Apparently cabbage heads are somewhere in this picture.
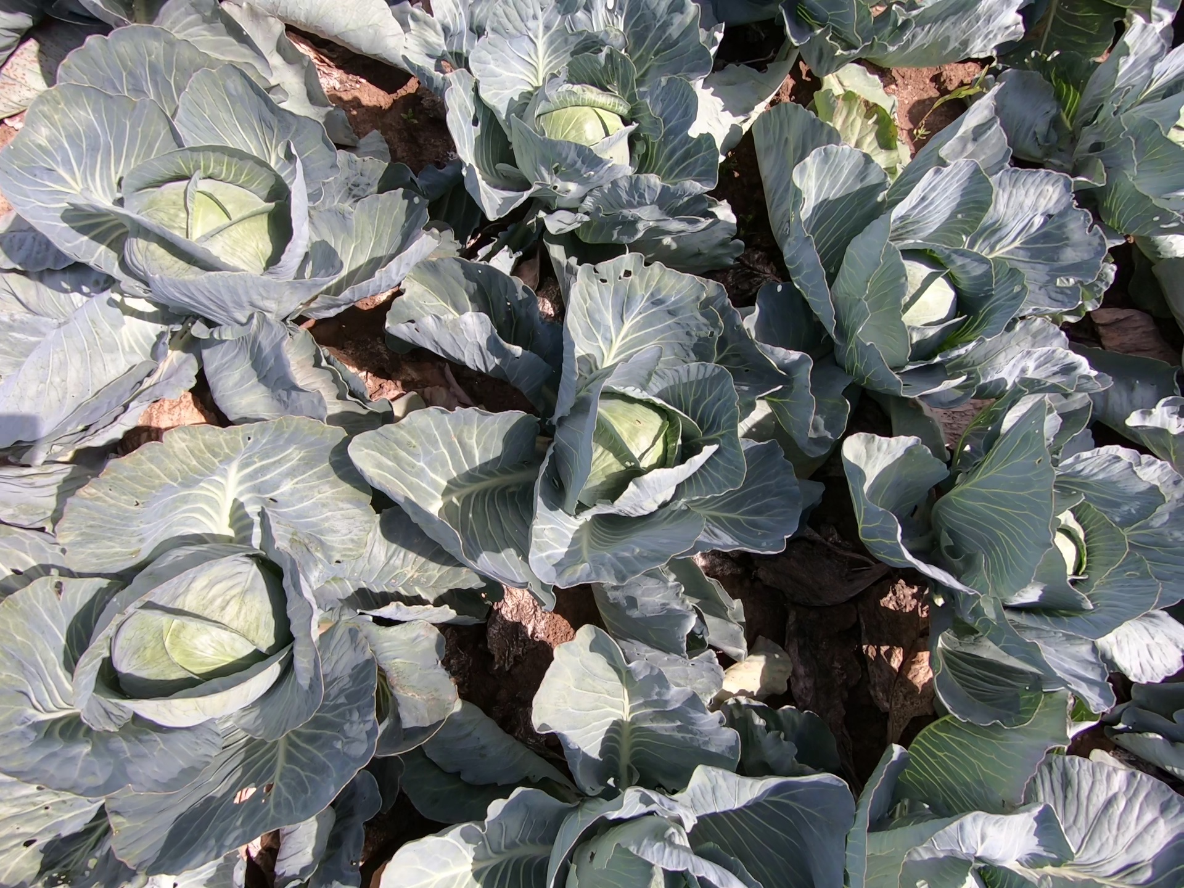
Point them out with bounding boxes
[111,551,299,707]
[558,392,683,508]
[526,85,628,188]
[567,832,683,886]
[1109,101,1183,201]
[863,836,990,887]
[863,250,960,358]
[1002,508,1088,586]
[121,176,299,298]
